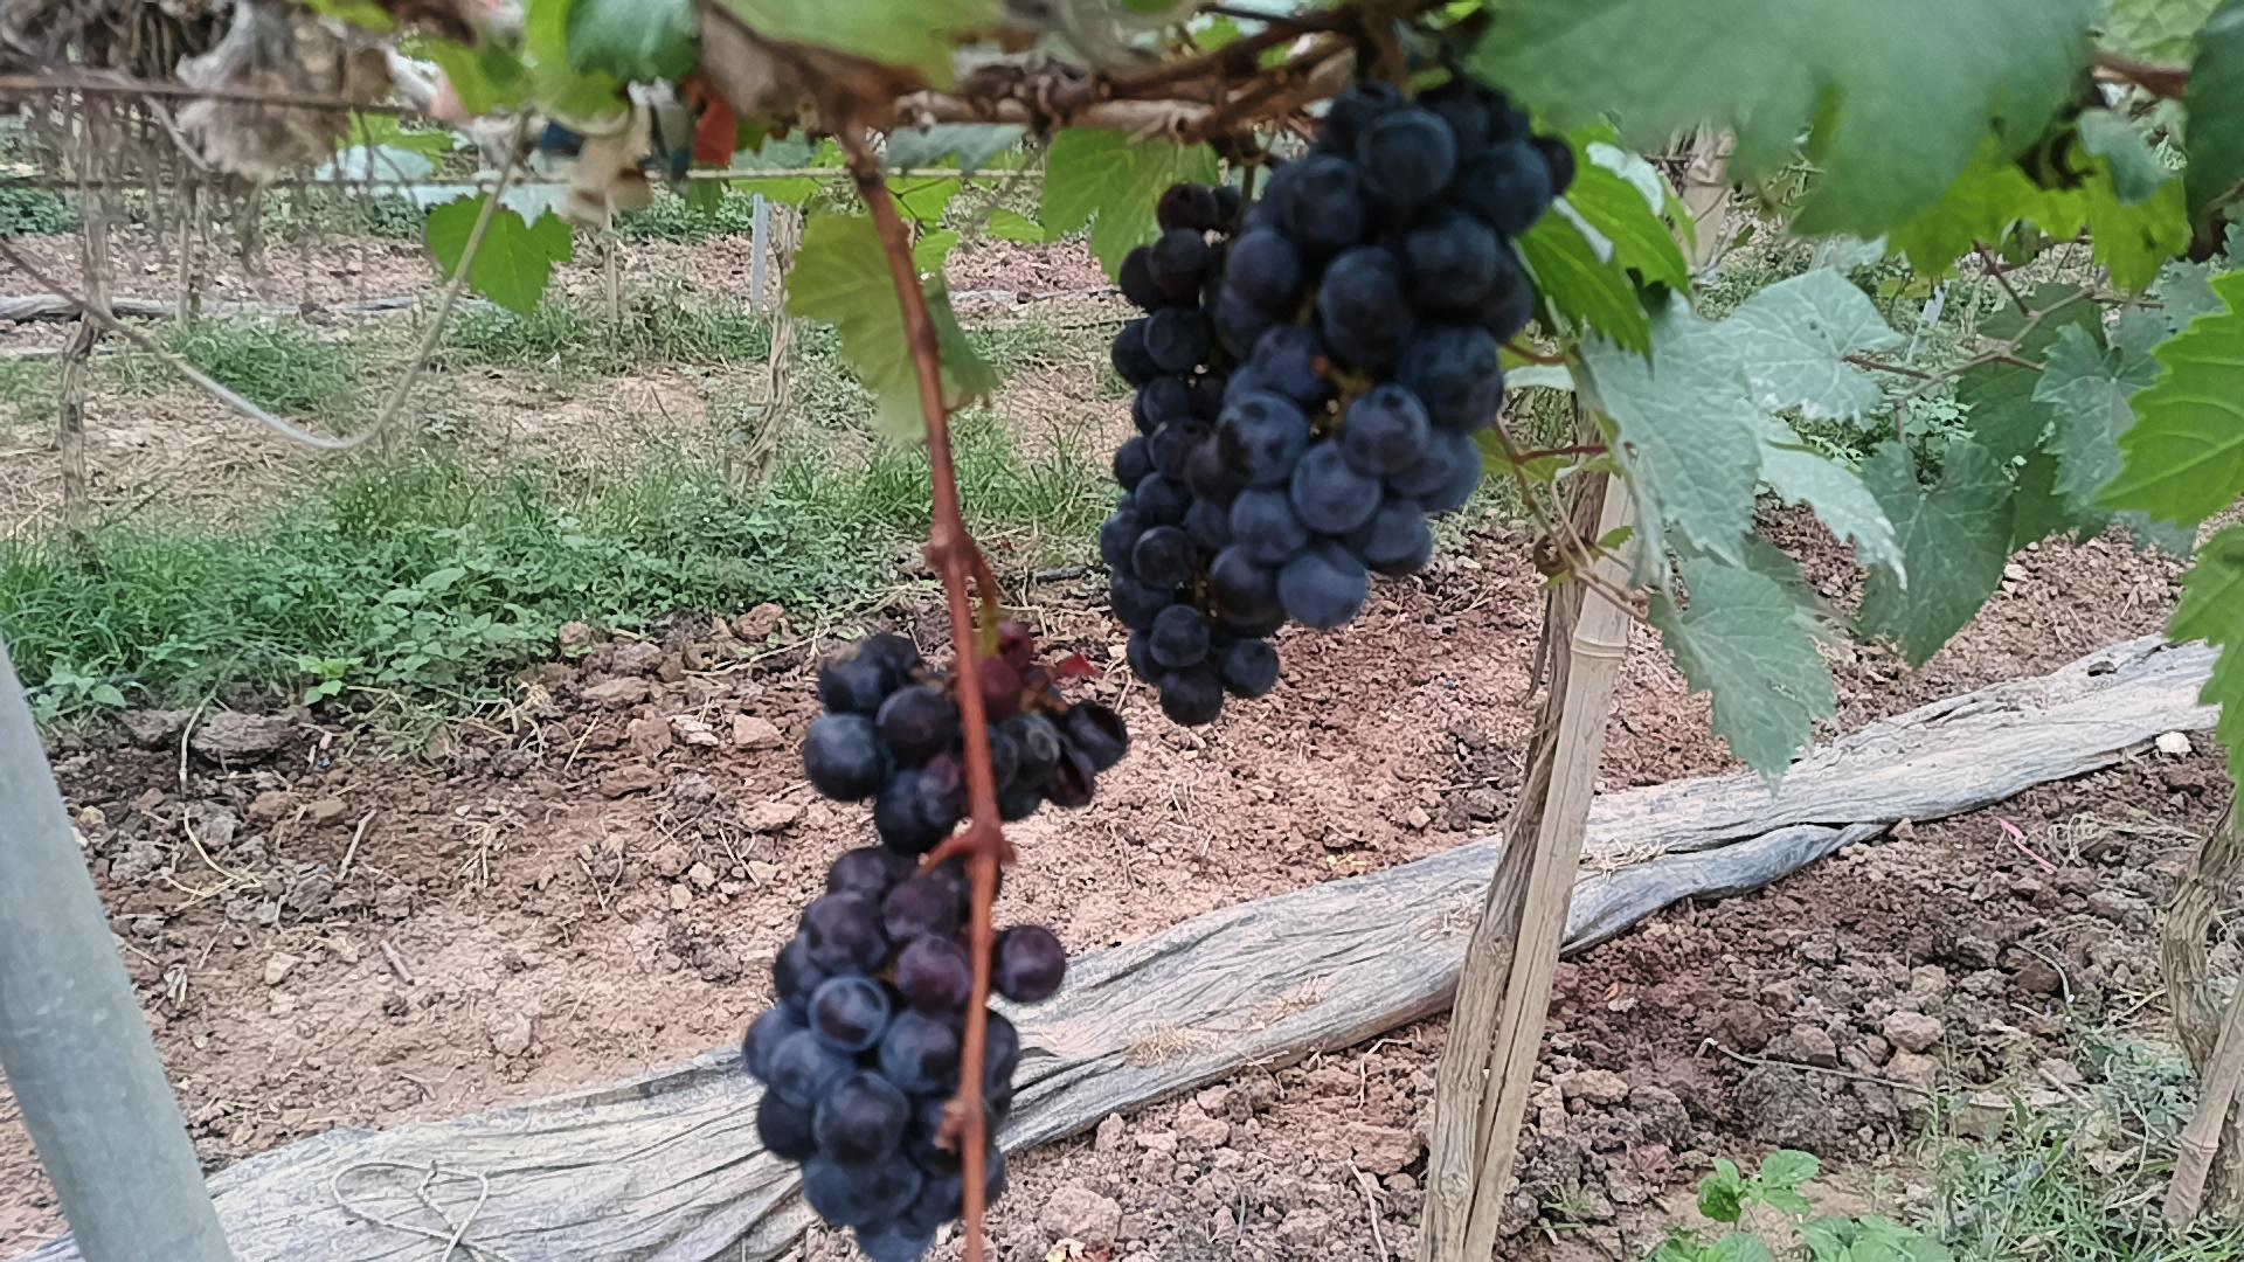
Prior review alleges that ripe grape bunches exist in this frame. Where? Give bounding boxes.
[1099,187,1277,726]
[1187,76,1579,631]
[744,616,1130,1261]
